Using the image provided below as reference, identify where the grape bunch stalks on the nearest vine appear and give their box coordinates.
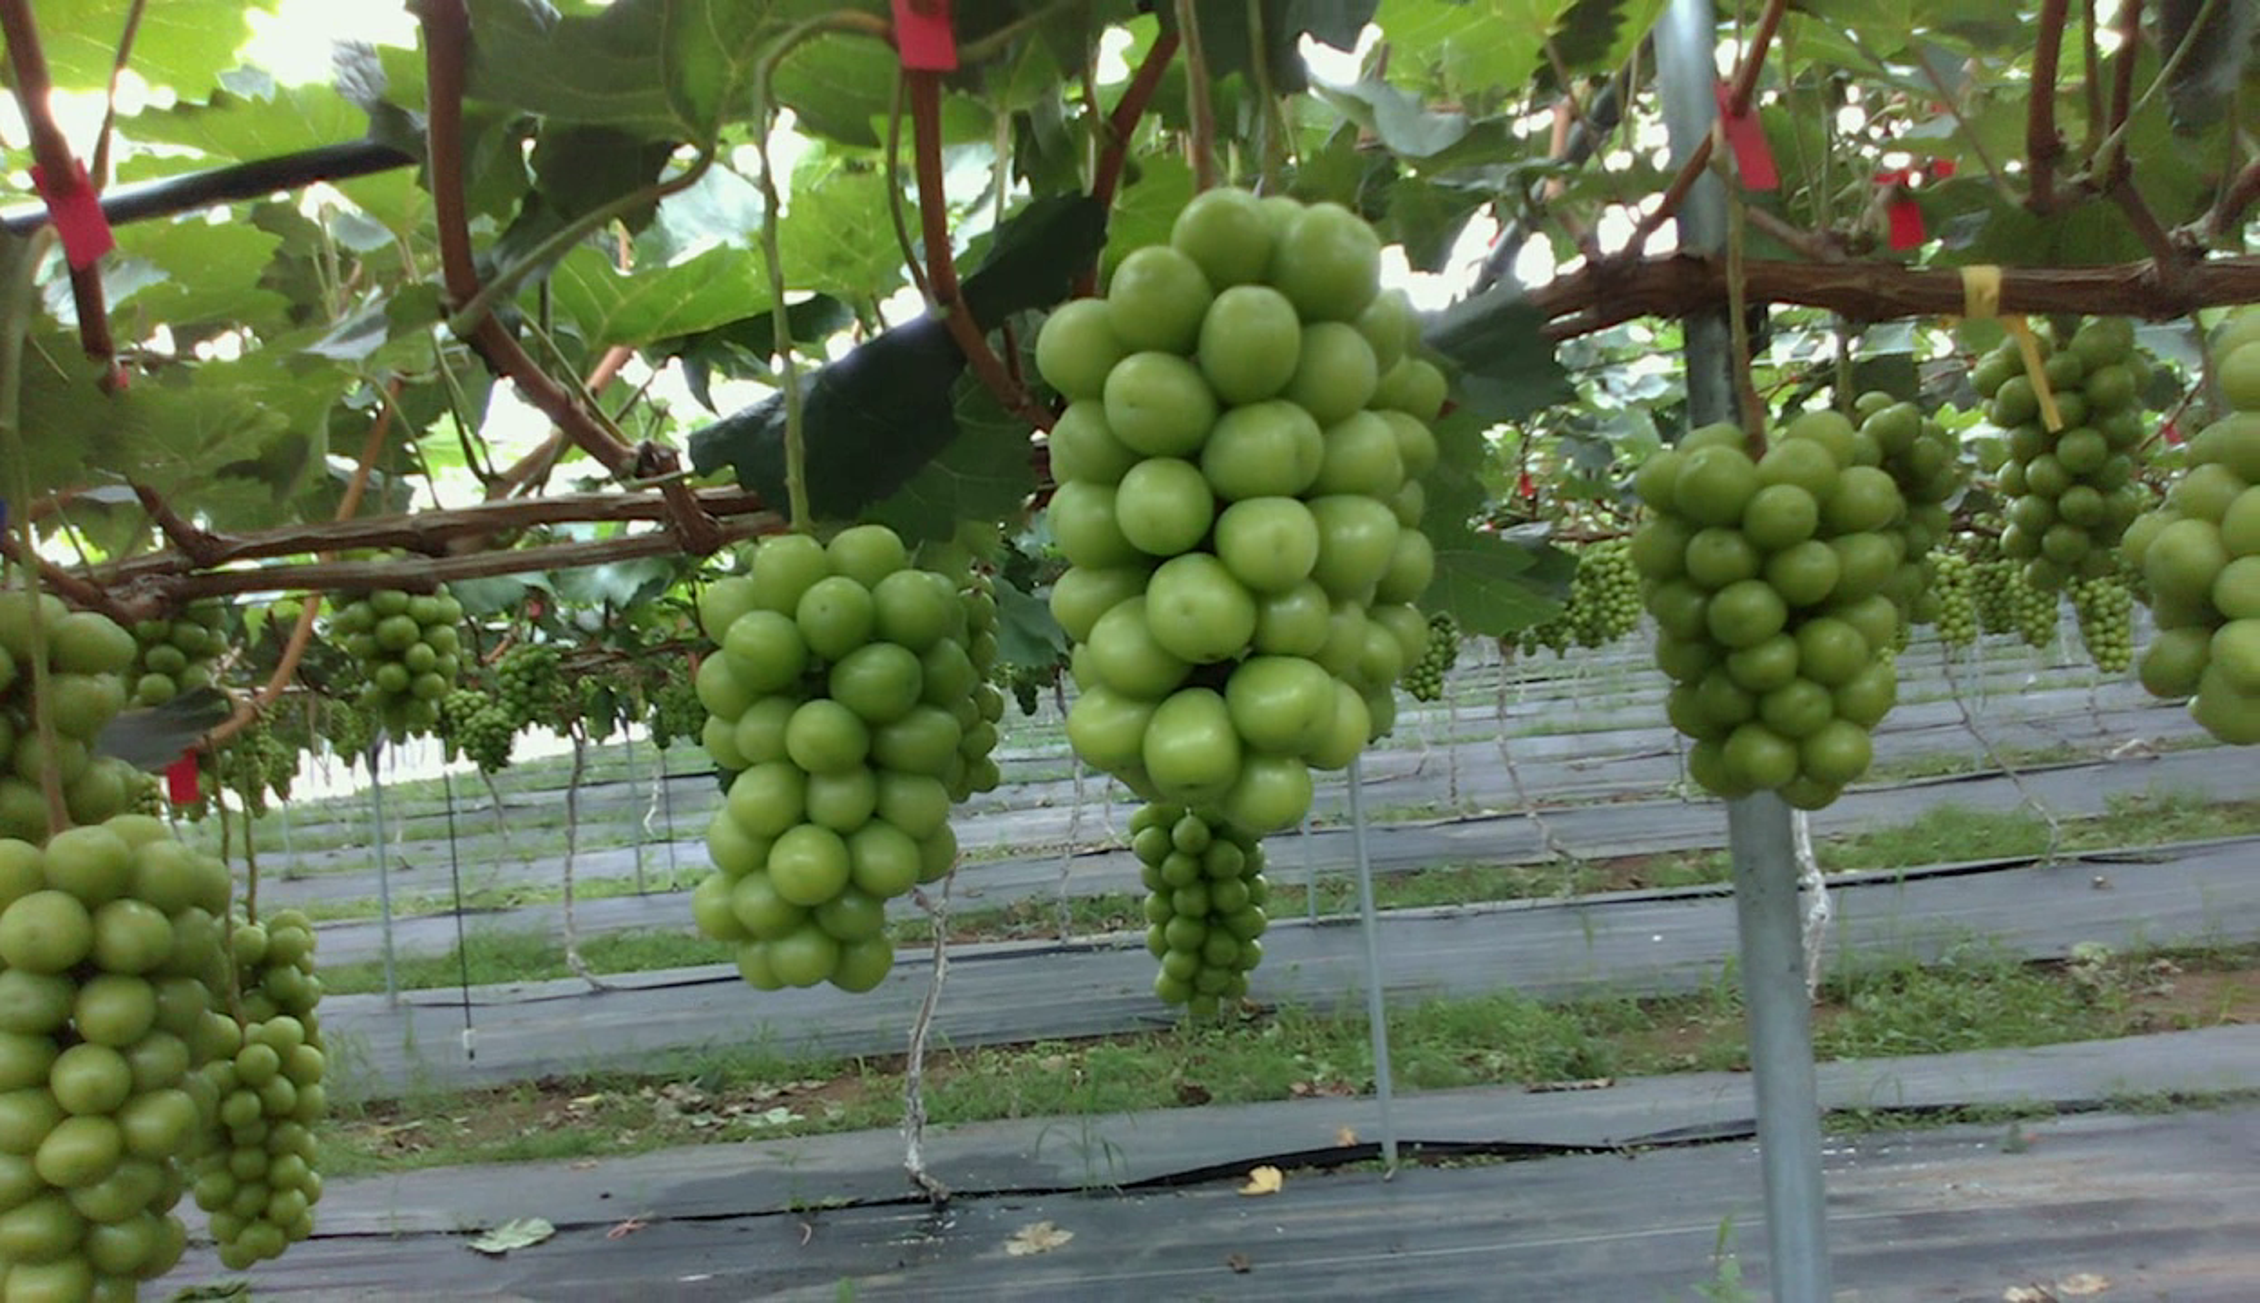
[753,7,896,530]
[1708,119,1767,456]
[1173,2,1213,188]
[2,232,71,829]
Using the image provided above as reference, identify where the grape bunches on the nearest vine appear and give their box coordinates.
[1032,185,1447,834]
[0,816,228,1301]
[1626,413,1901,809]
[690,525,974,994]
